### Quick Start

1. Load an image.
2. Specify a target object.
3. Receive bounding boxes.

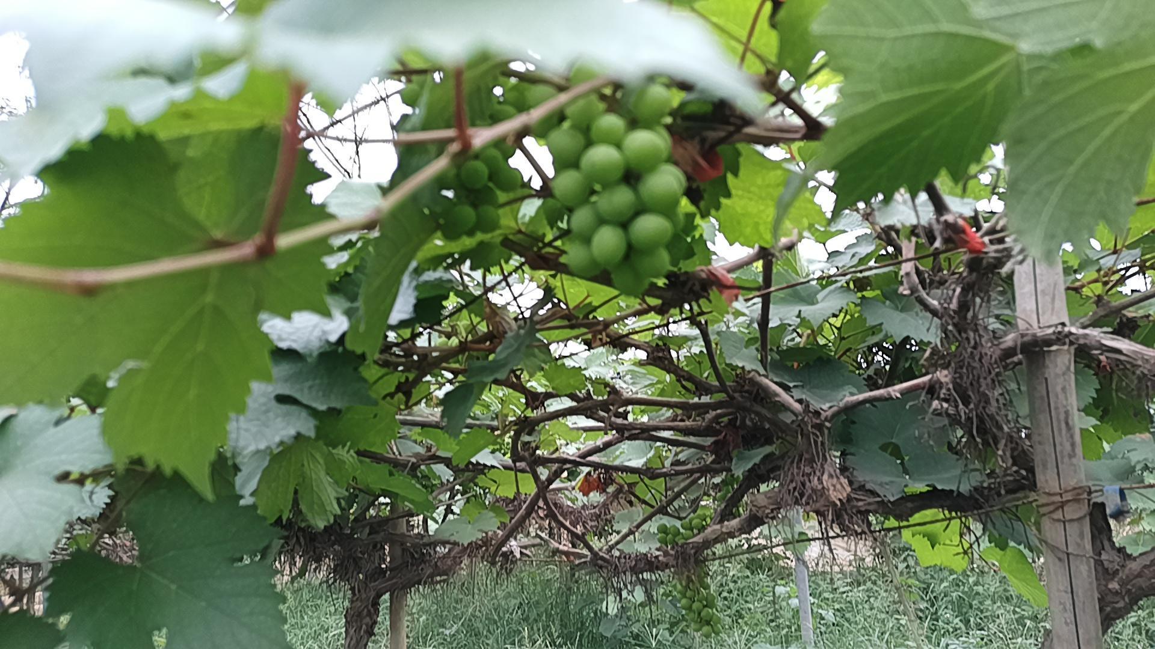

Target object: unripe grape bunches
[442,81,565,239]
[658,513,722,637]
[547,83,686,294]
